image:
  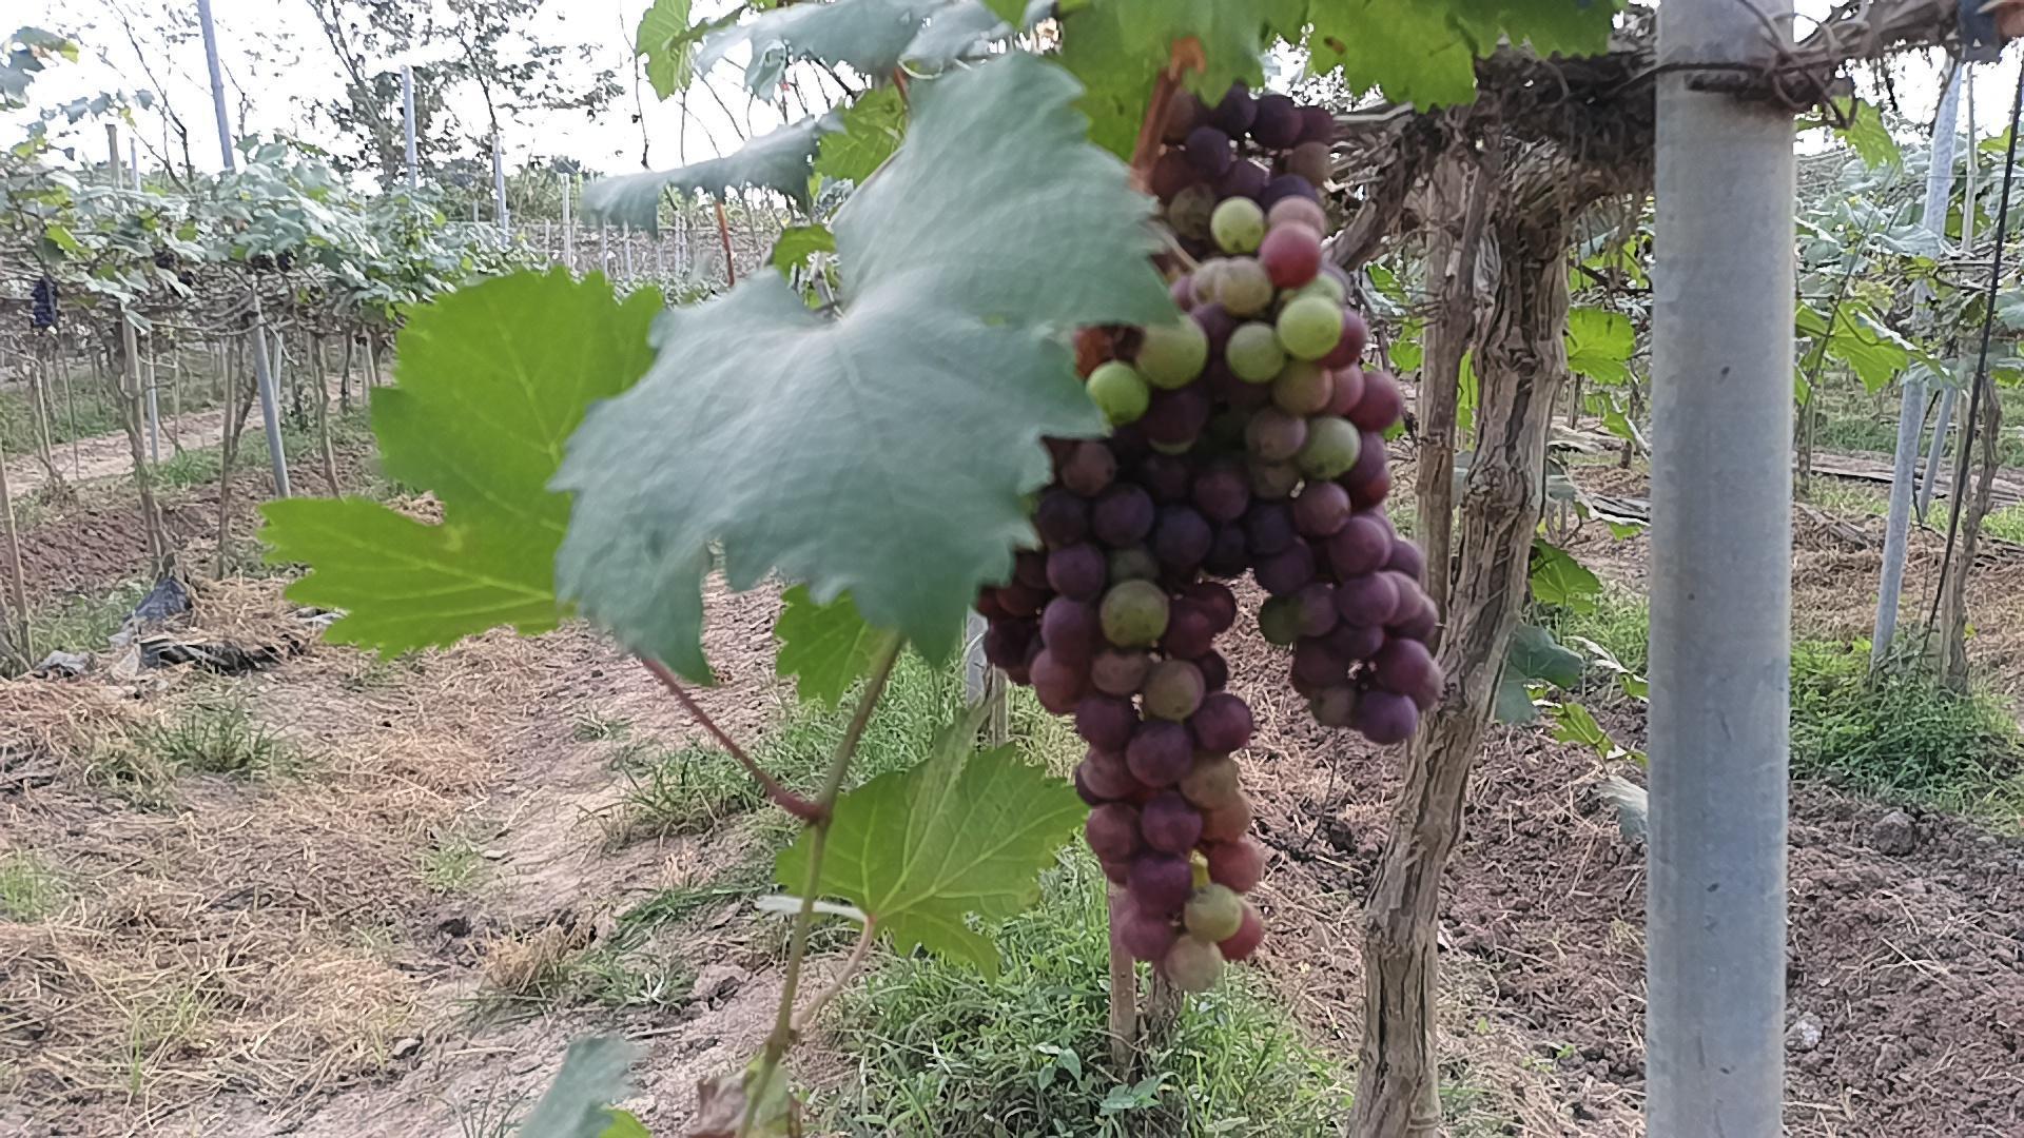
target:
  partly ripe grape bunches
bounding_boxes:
[974,313,1268,994]
[1148,77,1444,744]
